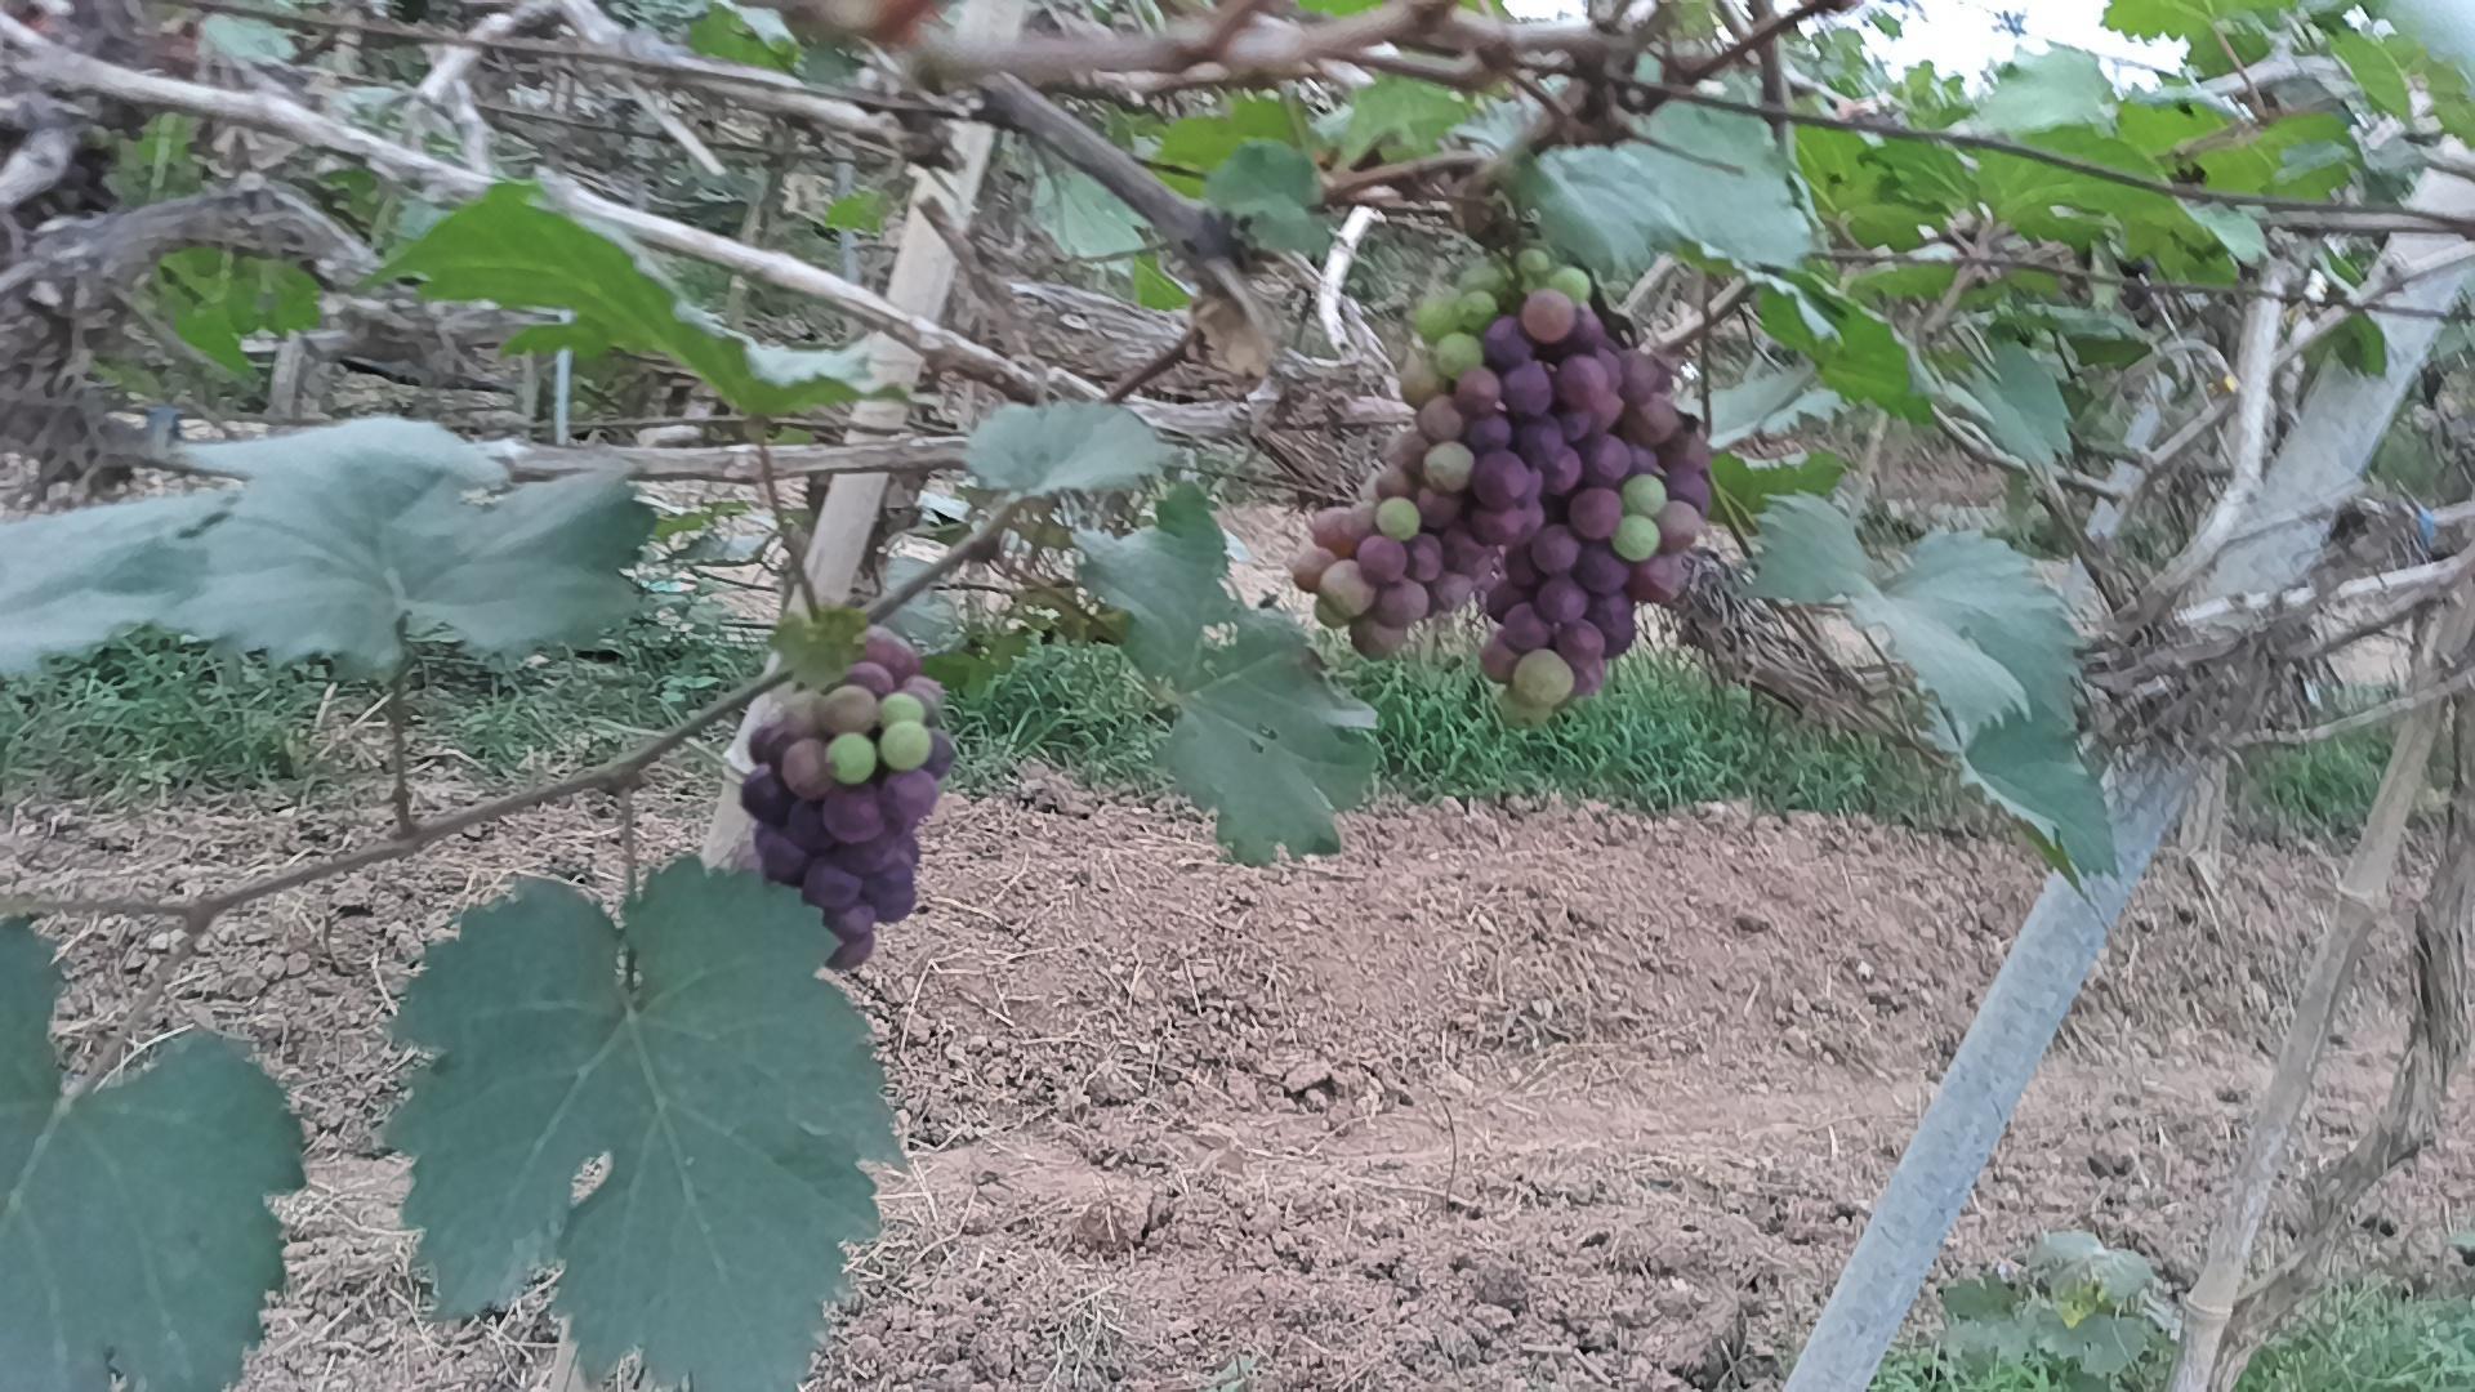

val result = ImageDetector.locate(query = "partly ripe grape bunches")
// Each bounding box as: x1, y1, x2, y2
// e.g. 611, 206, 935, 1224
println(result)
1480, 351, 1709, 717
740, 626, 954, 969
1290, 249, 1626, 657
